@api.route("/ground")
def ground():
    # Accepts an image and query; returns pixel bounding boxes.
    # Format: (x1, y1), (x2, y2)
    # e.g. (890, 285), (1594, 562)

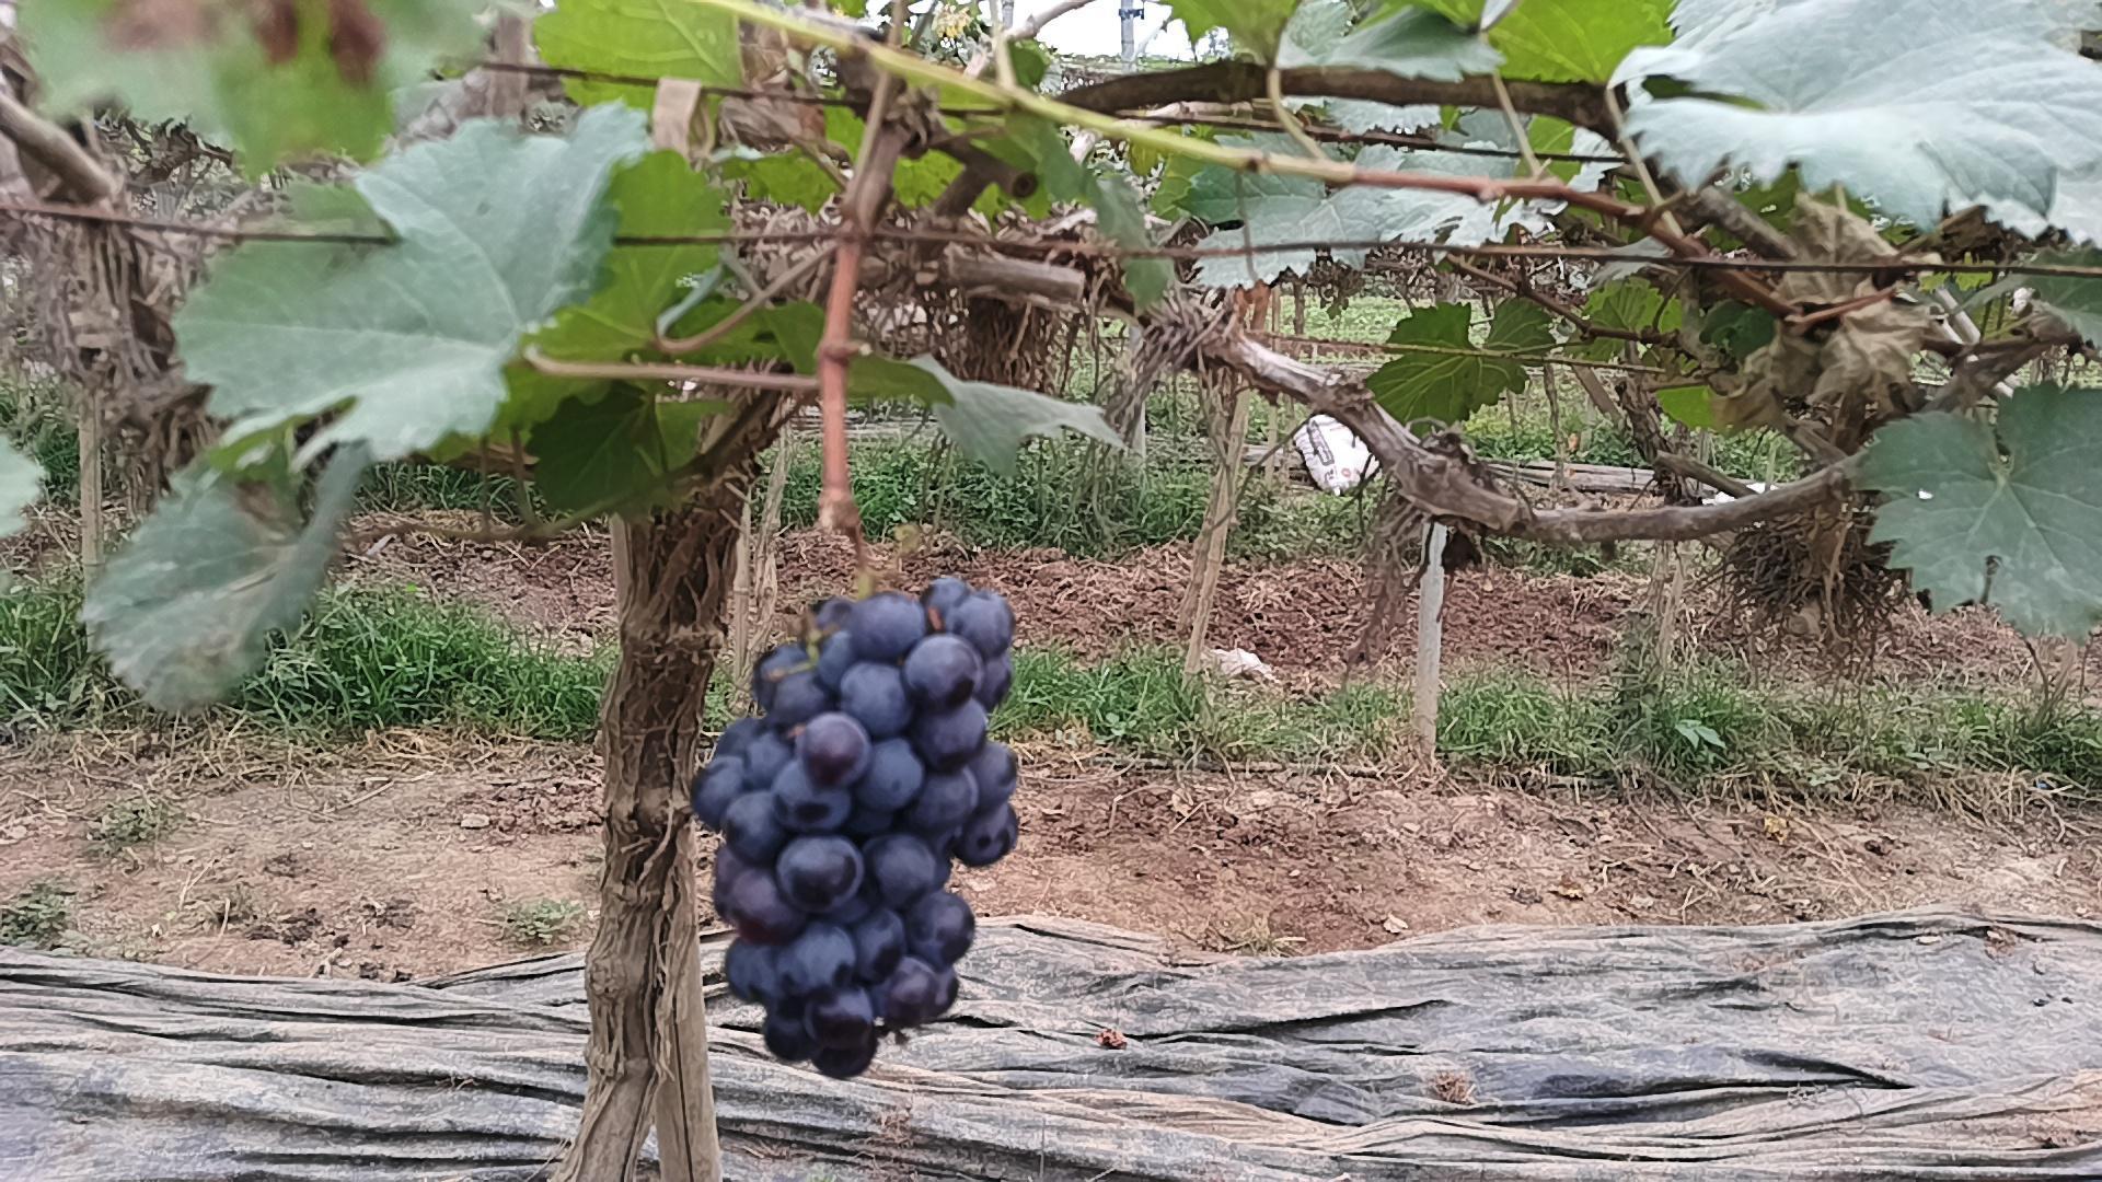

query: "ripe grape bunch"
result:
(693, 577), (1017, 1077)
